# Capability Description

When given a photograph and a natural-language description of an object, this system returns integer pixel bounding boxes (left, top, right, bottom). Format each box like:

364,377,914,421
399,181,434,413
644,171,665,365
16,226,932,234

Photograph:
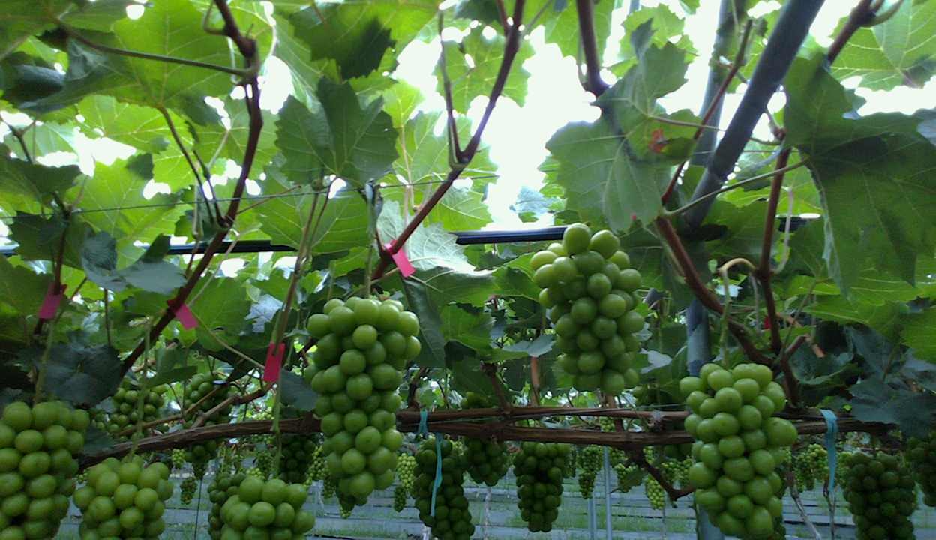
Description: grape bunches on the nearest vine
0,400,90,538
219,474,316,539
304,296,420,500
75,456,174,539
678,363,798,539
529,223,645,397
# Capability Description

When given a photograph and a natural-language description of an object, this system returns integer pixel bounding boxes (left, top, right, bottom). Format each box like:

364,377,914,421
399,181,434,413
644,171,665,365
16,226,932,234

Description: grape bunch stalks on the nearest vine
363,247,373,299
34,320,53,404
712,258,752,370
127,313,159,463
270,379,282,479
